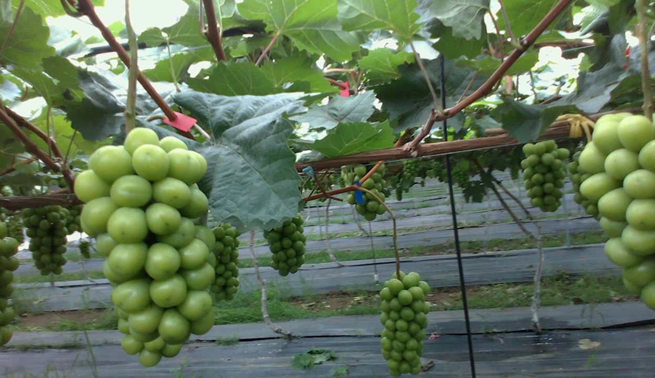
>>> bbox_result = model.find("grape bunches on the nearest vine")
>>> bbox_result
[579,111,654,310]
[73,127,217,366]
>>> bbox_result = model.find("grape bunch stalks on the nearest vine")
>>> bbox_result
[635,0,652,120]
[124,0,138,134]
